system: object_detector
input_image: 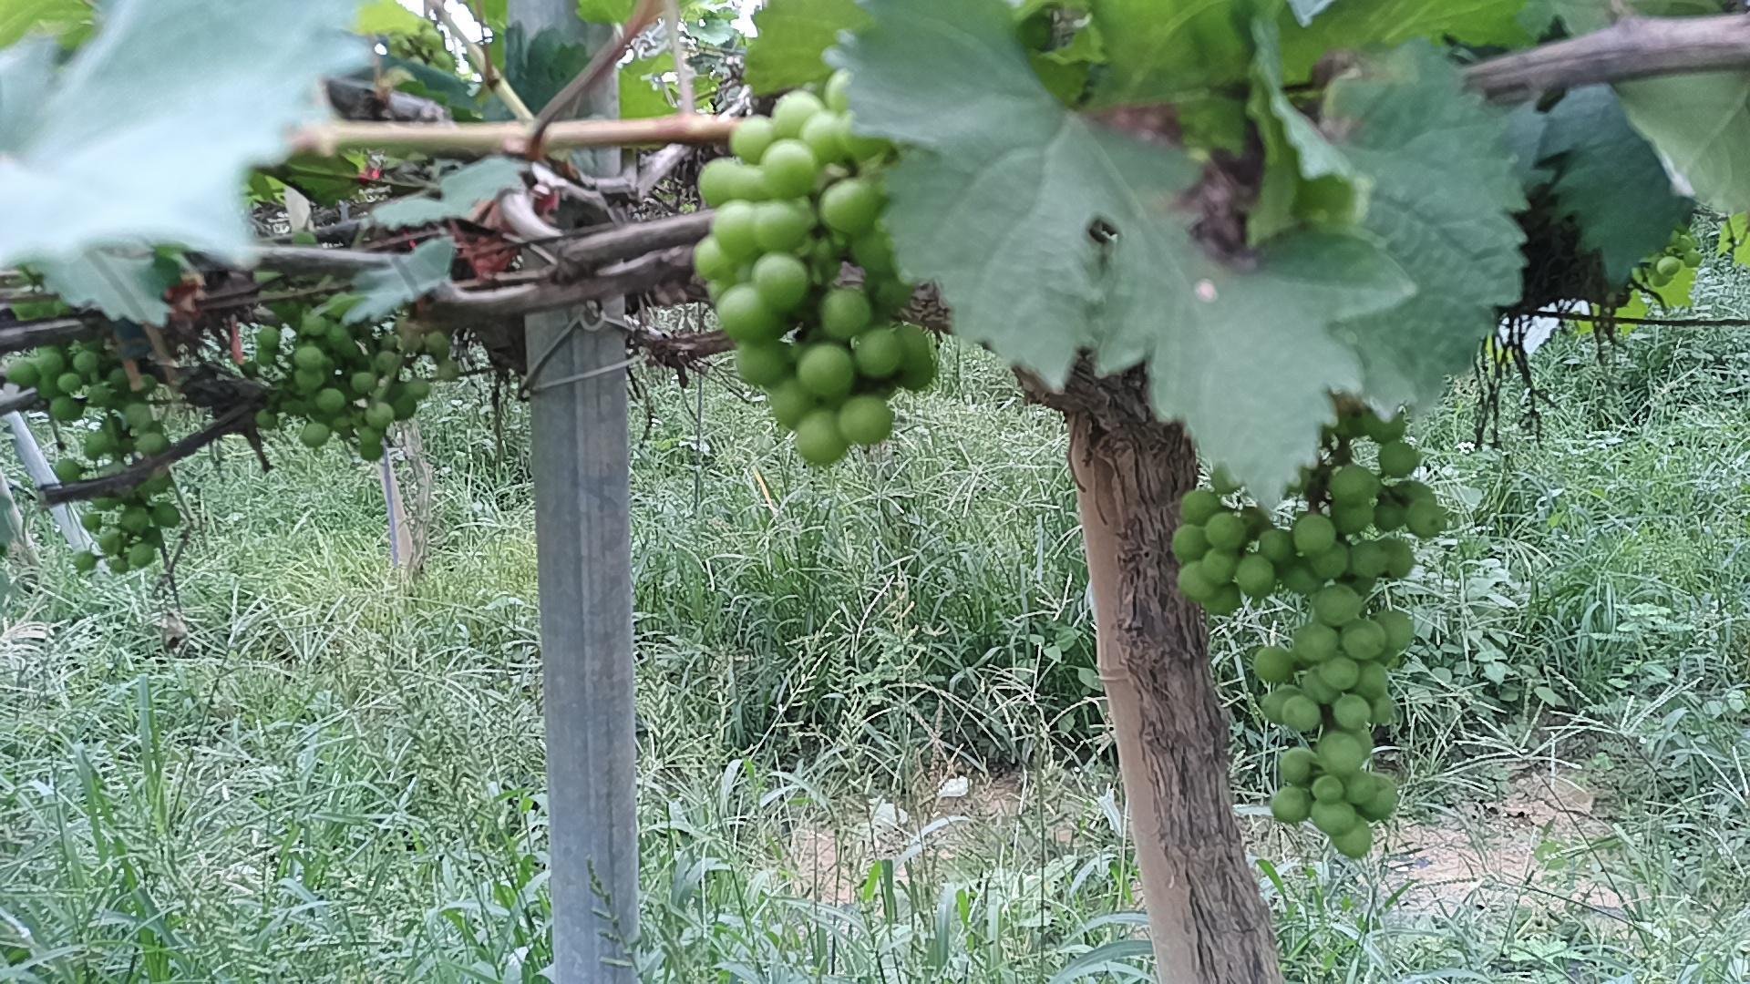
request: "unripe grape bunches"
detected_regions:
[1174,401,1447,858]
[240,232,459,462]
[696,77,937,464]
[1,293,181,575]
